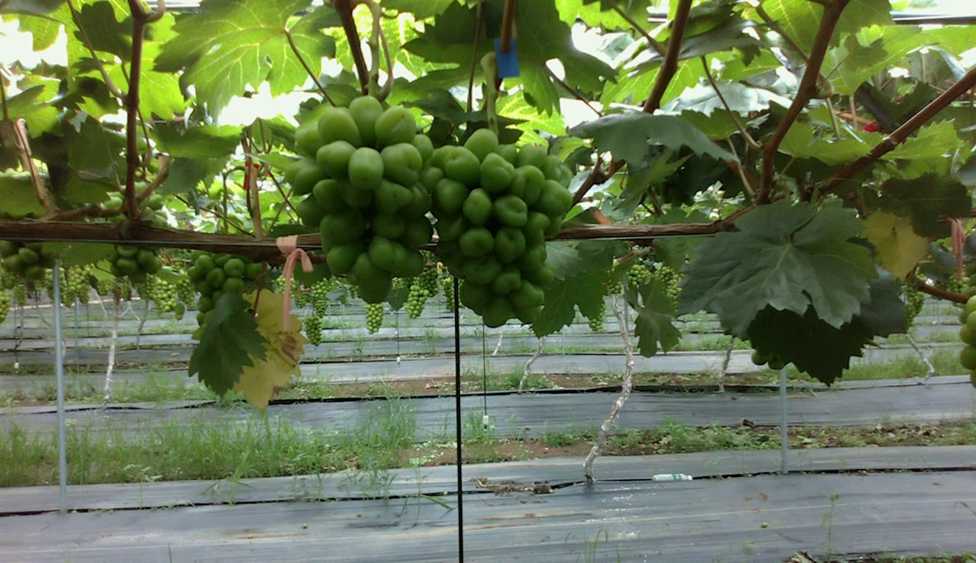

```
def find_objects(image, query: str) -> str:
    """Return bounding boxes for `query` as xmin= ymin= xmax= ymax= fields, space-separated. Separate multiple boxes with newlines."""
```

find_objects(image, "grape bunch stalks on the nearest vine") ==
xmin=483 ymin=49 xmax=497 ymax=137
xmin=364 ymin=1 xmax=381 ymax=97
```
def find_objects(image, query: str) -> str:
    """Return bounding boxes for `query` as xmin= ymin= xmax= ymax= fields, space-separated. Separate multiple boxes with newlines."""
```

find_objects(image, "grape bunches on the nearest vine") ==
xmin=958 ymin=295 xmax=975 ymax=386
xmin=284 ymin=95 xmax=444 ymax=304
xmin=429 ymin=128 xmax=572 ymax=328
